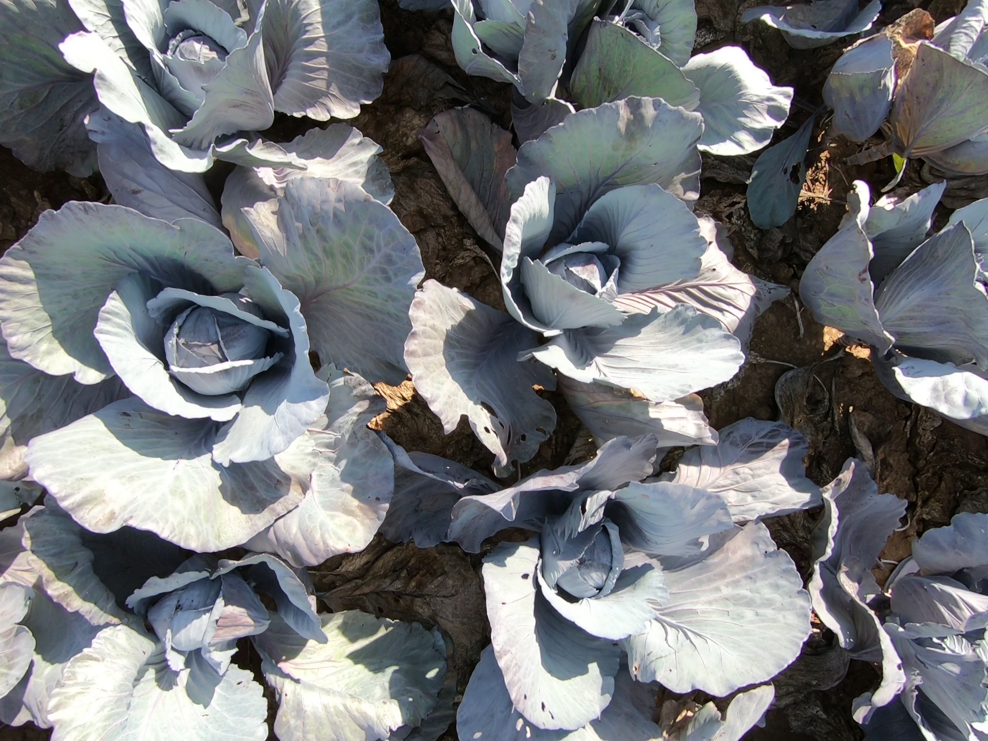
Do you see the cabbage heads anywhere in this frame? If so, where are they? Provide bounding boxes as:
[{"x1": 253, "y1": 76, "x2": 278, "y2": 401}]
[
  {"x1": 551, "y1": 513, "x2": 624, "y2": 597},
  {"x1": 160, "y1": 297, "x2": 268, "y2": 391},
  {"x1": 904, "y1": 591, "x2": 986, "y2": 727},
  {"x1": 475, "y1": 2, "x2": 568, "y2": 46},
  {"x1": 159, "y1": 577, "x2": 242, "y2": 655},
  {"x1": 167, "y1": 30, "x2": 240, "y2": 107},
  {"x1": 544, "y1": 249, "x2": 612, "y2": 319}
]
